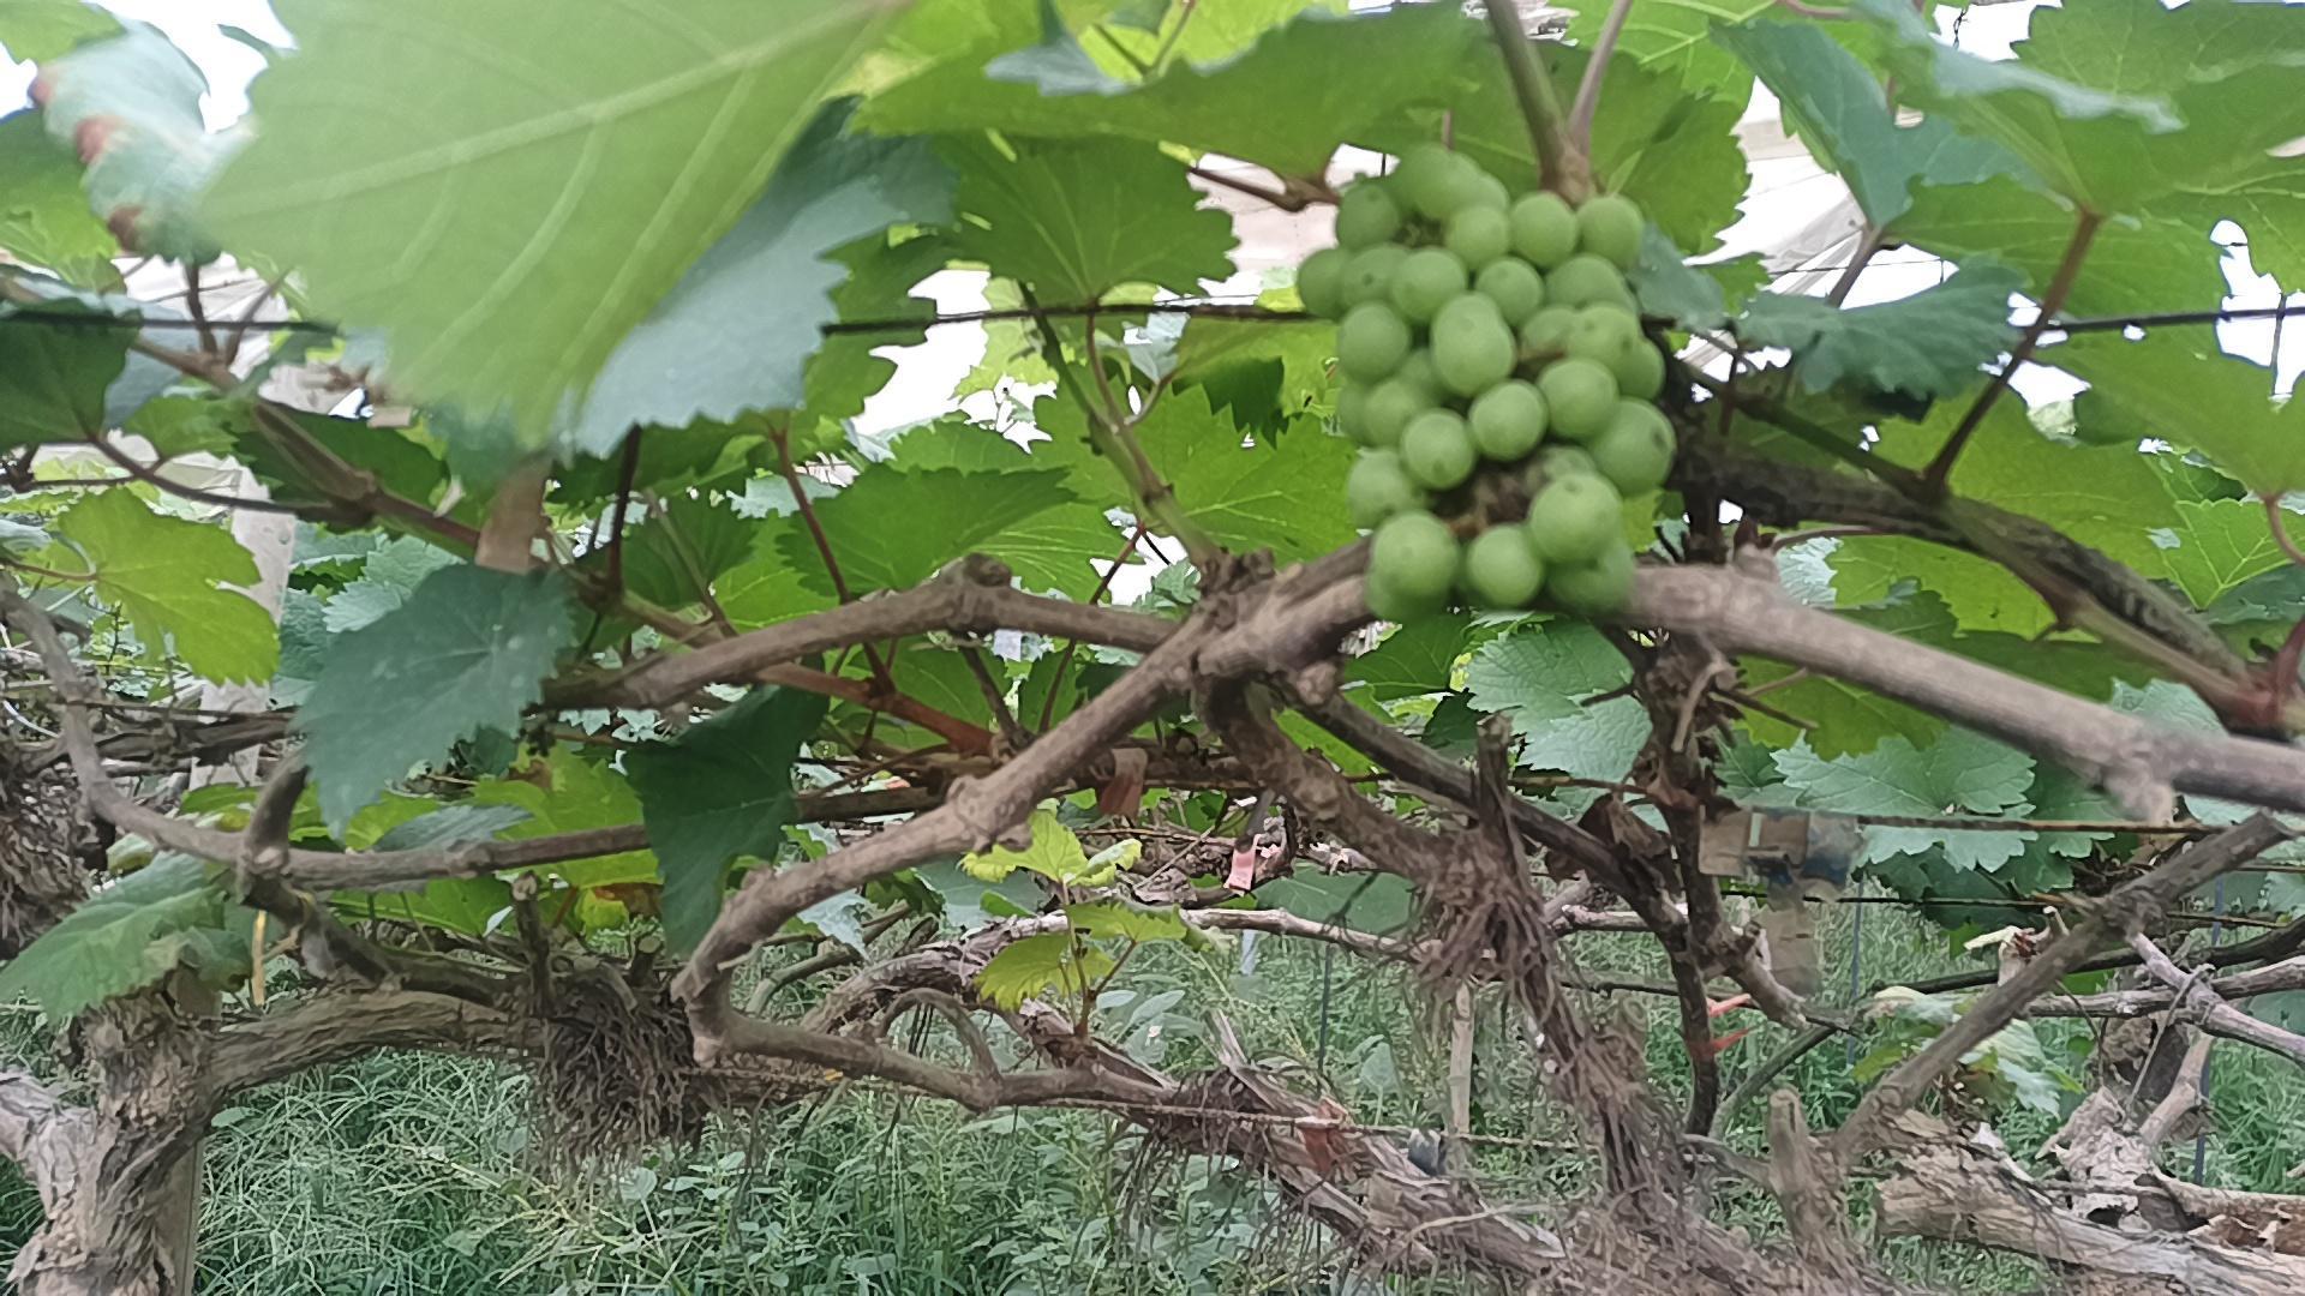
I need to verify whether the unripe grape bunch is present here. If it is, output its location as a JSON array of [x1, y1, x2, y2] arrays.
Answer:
[[1299, 146, 1675, 618]]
